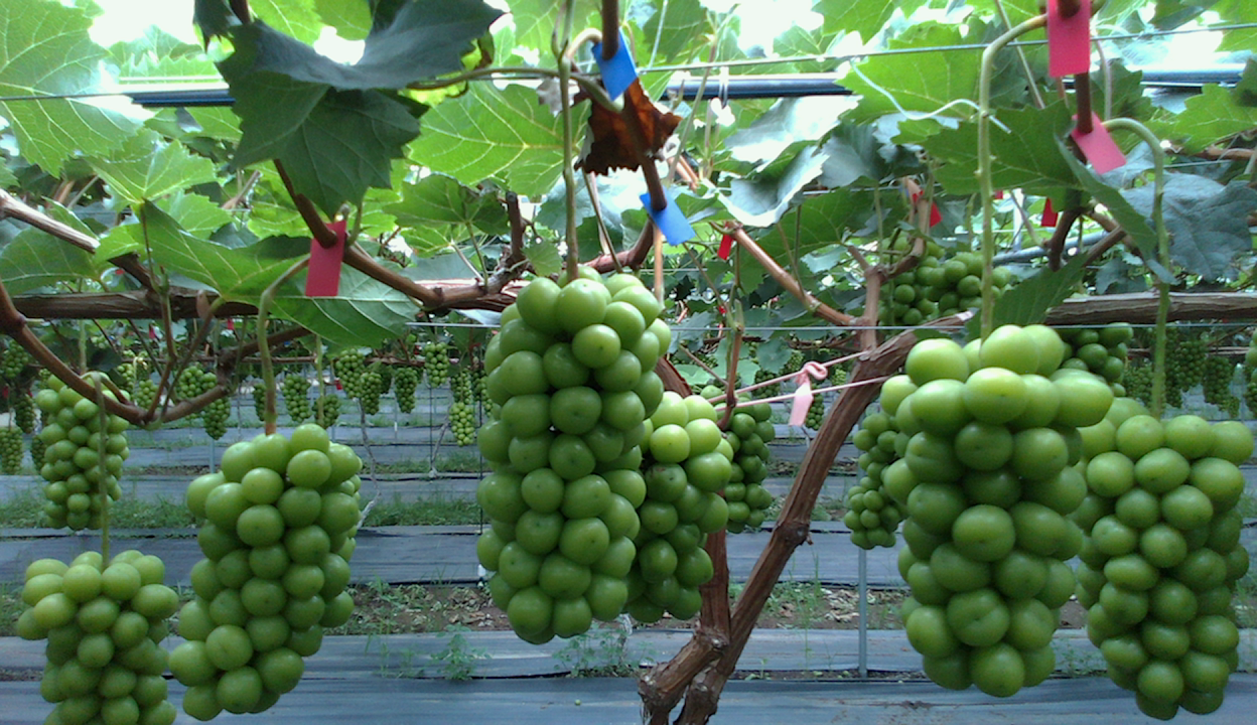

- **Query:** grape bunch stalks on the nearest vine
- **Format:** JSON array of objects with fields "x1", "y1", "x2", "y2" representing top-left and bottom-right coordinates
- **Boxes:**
[
  {"x1": 979, "y1": 15, "x2": 1047, "y2": 345},
  {"x1": 257, "y1": 258, "x2": 310, "y2": 435},
  {"x1": 94, "y1": 375, "x2": 132, "y2": 573},
  {"x1": 556, "y1": 29, "x2": 603, "y2": 285},
  {"x1": 1100, "y1": 119, "x2": 1170, "y2": 422}
]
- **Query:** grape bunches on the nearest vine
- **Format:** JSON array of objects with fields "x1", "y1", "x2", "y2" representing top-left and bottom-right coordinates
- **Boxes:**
[
  {"x1": 622, "y1": 391, "x2": 733, "y2": 623},
  {"x1": 1068, "y1": 397, "x2": 1255, "y2": 721},
  {"x1": 879, "y1": 324, "x2": 1113, "y2": 699},
  {"x1": 475, "y1": 264, "x2": 673, "y2": 644},
  {"x1": 17, "y1": 549, "x2": 177, "y2": 724},
  {"x1": 168, "y1": 423, "x2": 362, "y2": 721}
]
